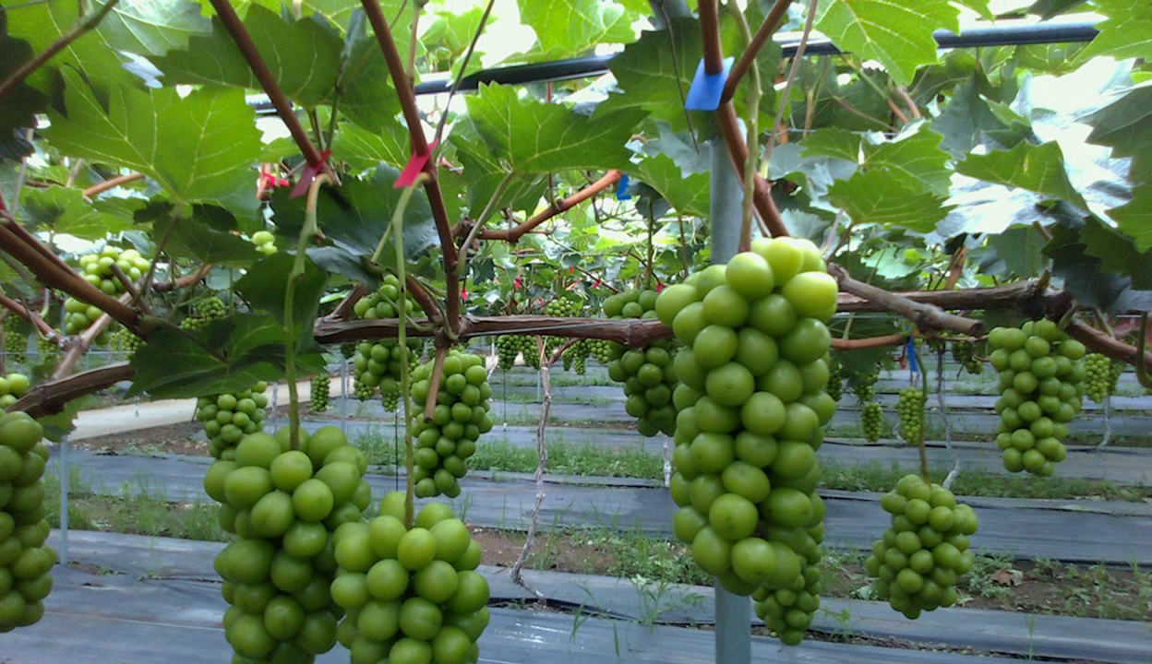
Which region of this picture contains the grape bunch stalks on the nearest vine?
[283,173,331,449]
[727,0,762,253]
[392,172,430,531]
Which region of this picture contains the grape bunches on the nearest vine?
[330,492,491,663]
[1,408,57,633]
[203,426,371,662]
[654,235,837,597]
